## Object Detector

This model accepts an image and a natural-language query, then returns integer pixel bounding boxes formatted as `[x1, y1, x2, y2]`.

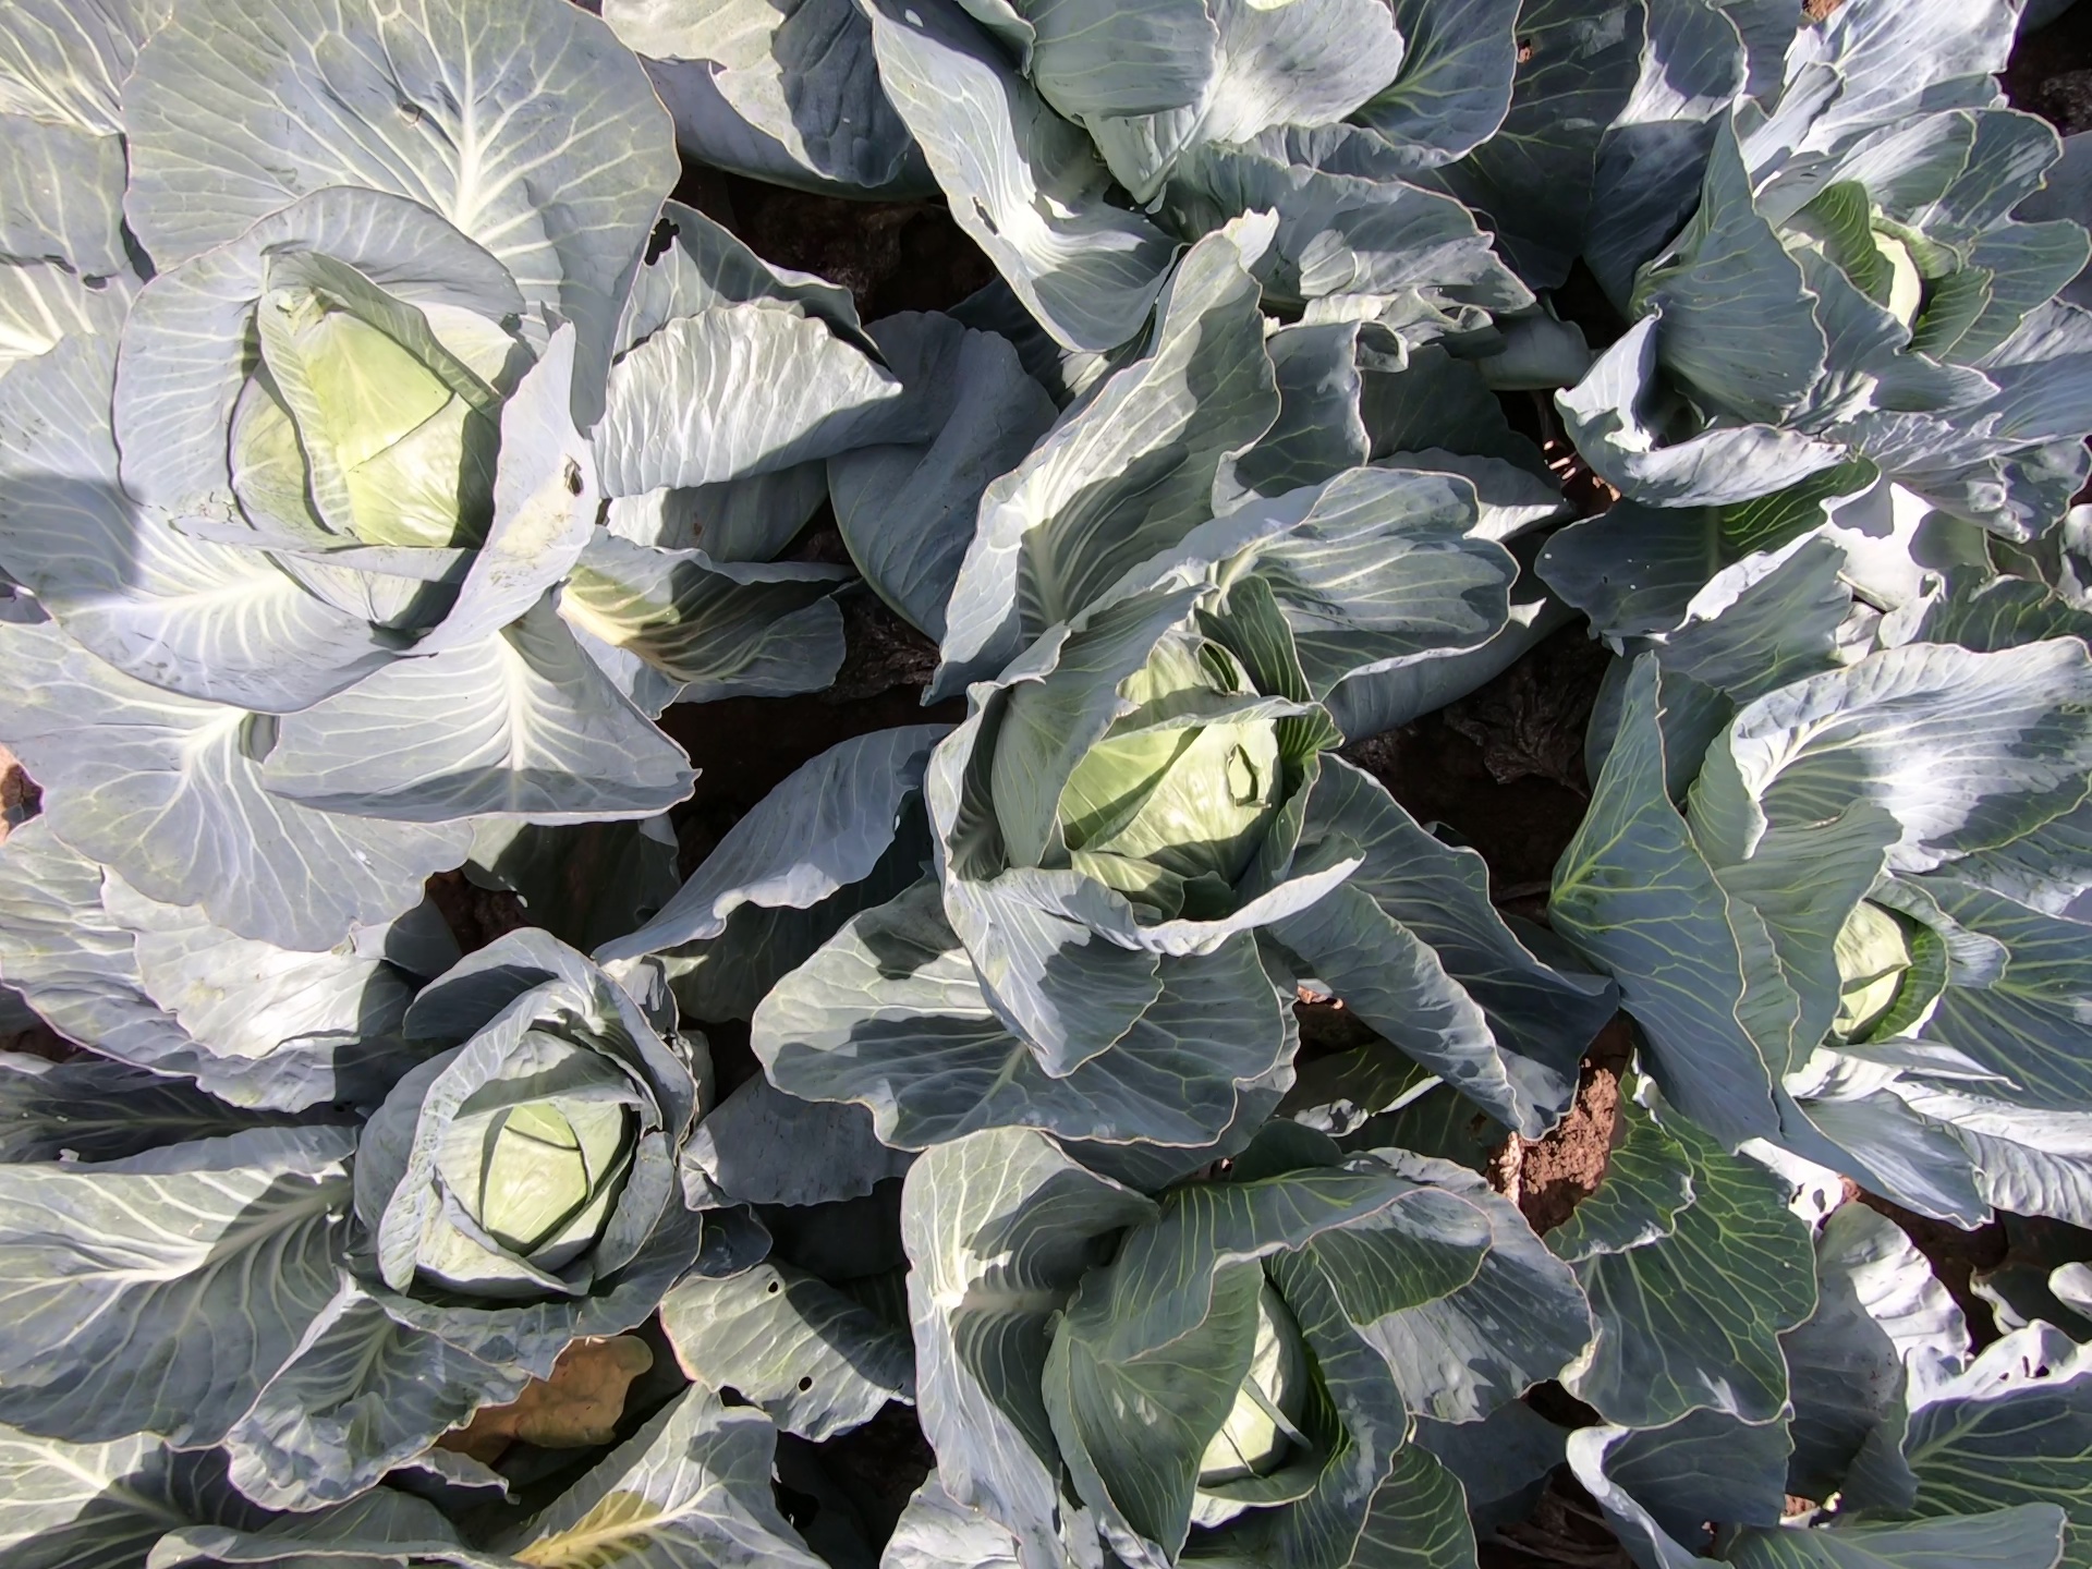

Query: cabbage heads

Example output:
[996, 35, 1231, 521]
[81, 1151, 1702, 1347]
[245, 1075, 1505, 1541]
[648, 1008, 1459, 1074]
[341, 1025, 642, 1297]
[1779, 220, 1925, 364]
[221, 299, 576, 631]
[1757, 886, 1938, 1081]
[996, 638, 1282, 917]
[1062, 1251, 1306, 1512]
